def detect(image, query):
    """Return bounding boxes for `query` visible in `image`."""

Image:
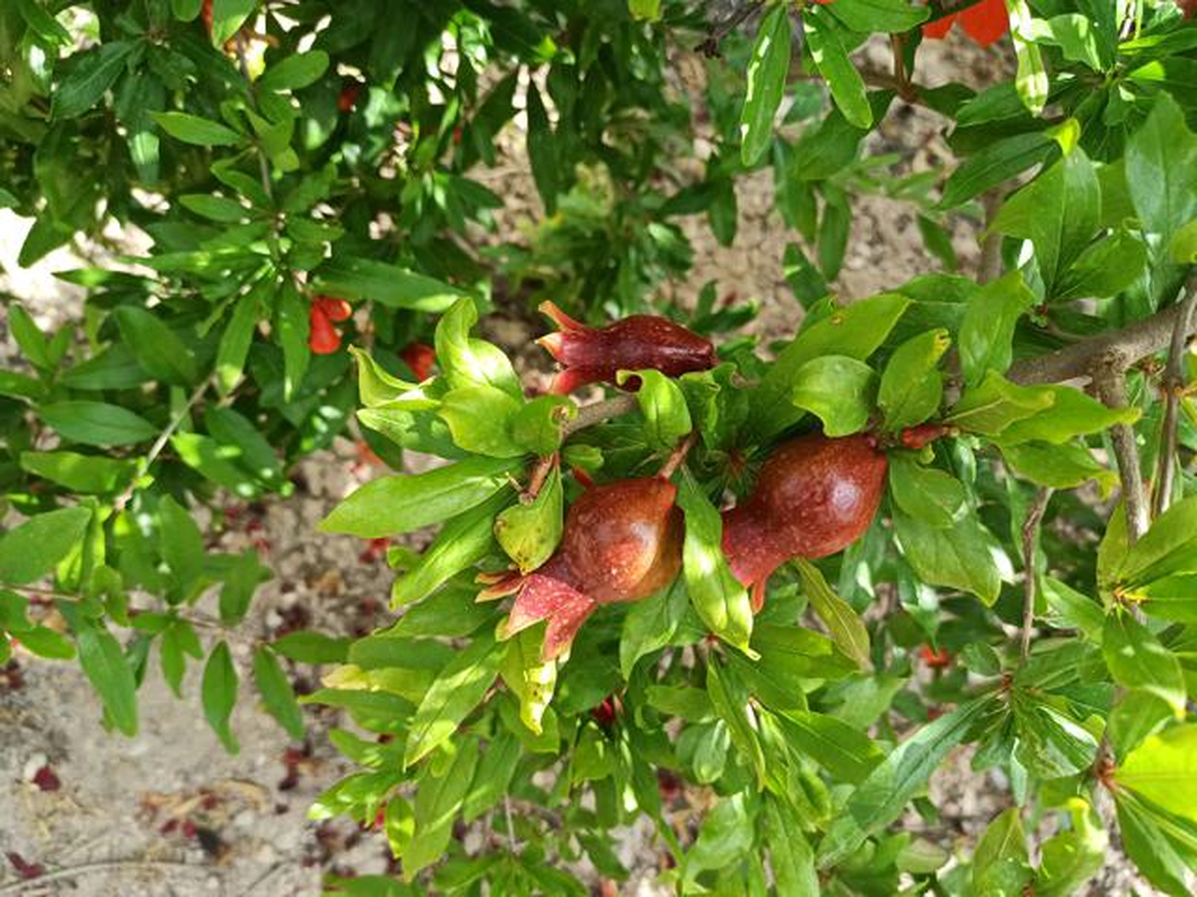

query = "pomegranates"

[718,426,890,613]
[537,299,716,396]
[471,473,683,667]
